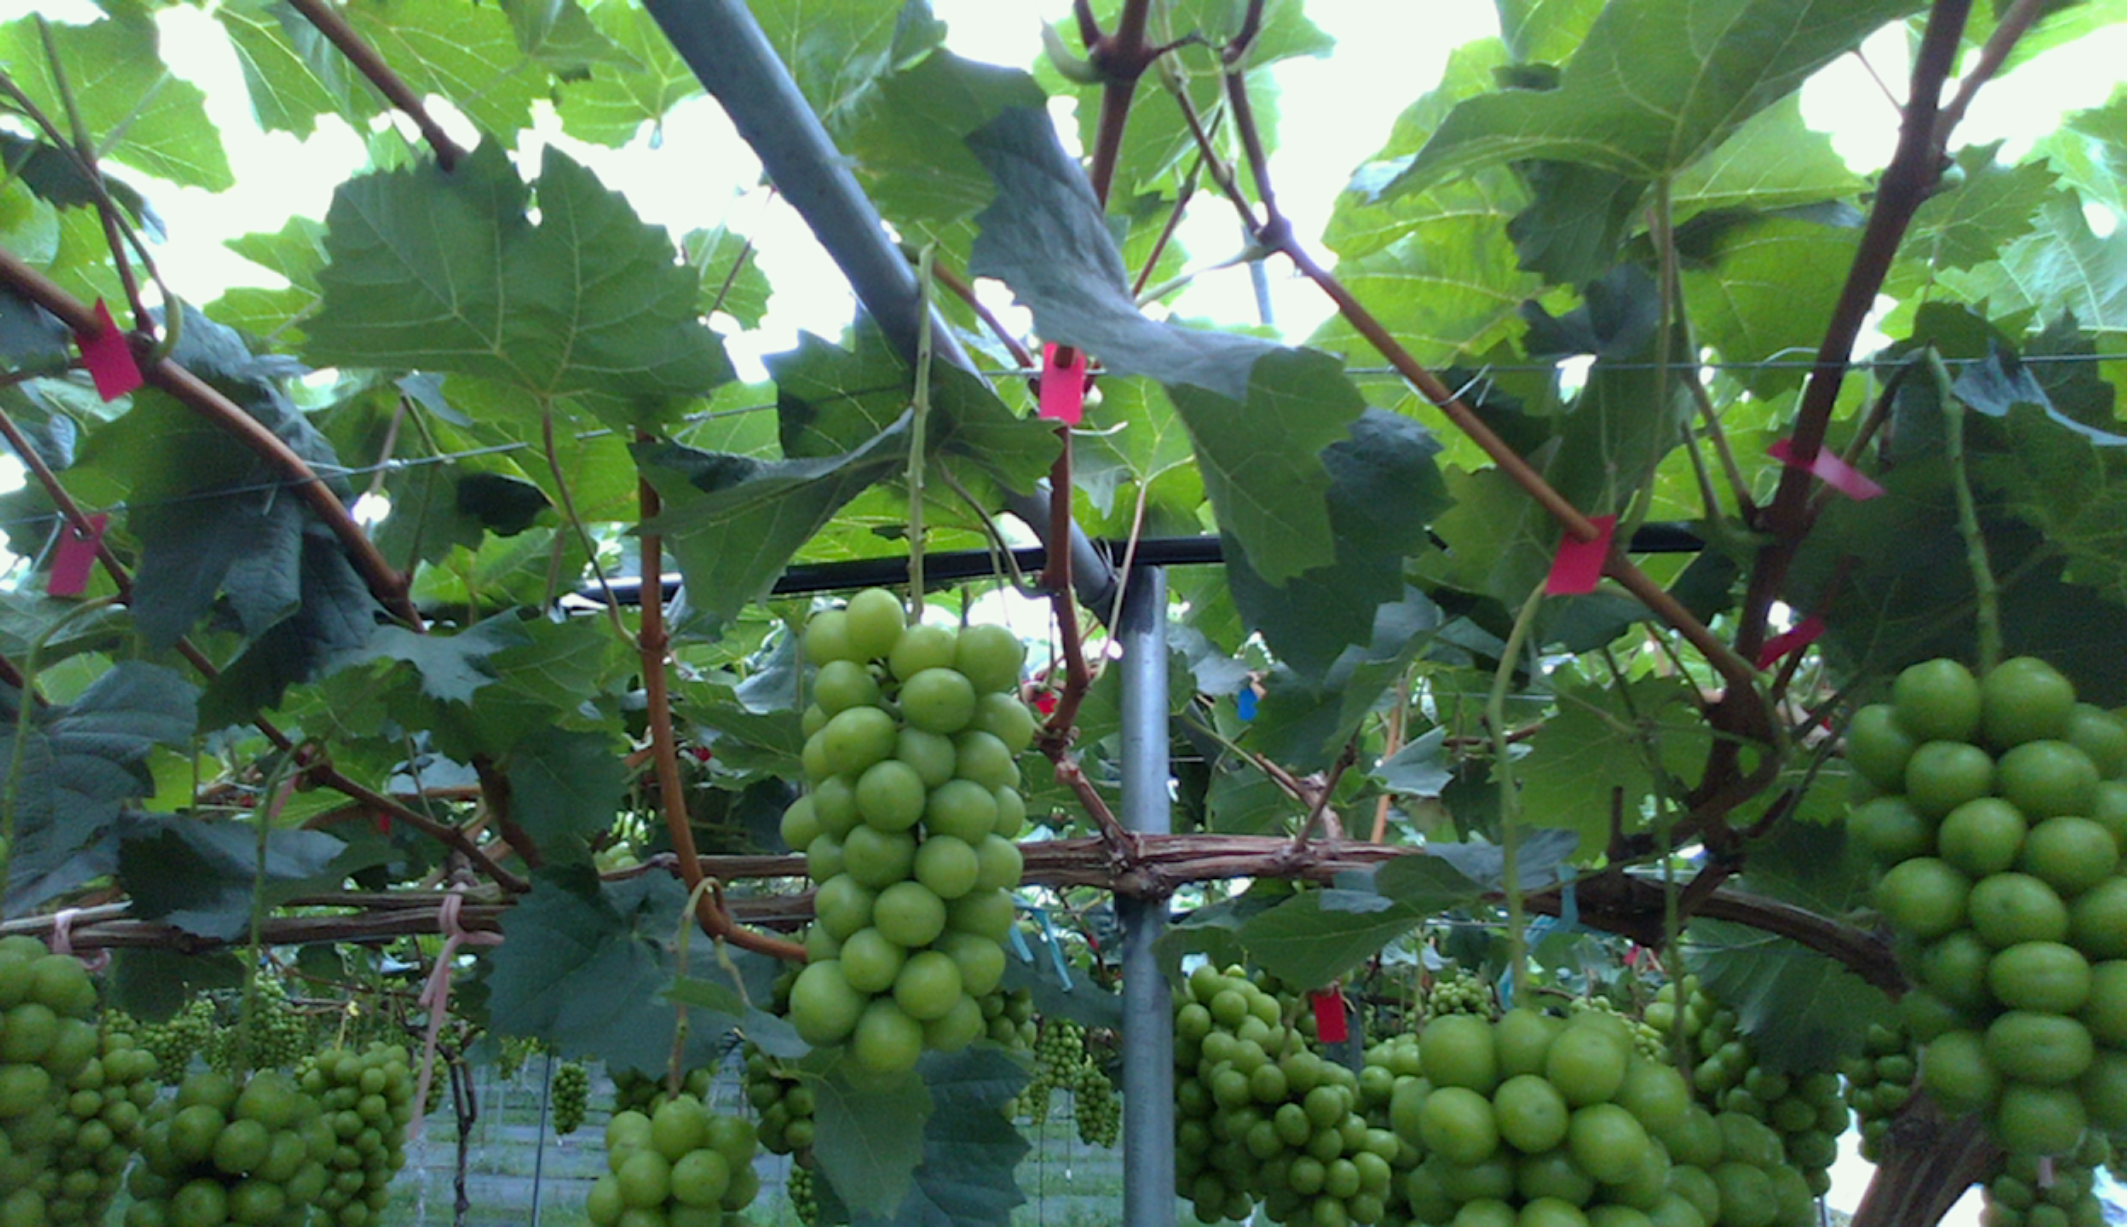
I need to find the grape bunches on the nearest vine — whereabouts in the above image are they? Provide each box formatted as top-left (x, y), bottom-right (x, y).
top-left (779, 588), bottom-right (1035, 1077)
top-left (586, 1092), bottom-right (760, 1225)
top-left (121, 1072), bottom-right (336, 1225)
top-left (5, 936), bottom-right (94, 1225)
top-left (1844, 658), bottom-right (2125, 1157)
top-left (1708, 1113), bottom-right (1819, 1225)
top-left (1387, 1009), bottom-right (1723, 1225)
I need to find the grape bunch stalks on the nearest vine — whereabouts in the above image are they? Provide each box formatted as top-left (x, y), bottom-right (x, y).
top-left (903, 256), bottom-right (934, 622)
top-left (233, 736), bottom-right (319, 1089)
top-left (1641, 741), bottom-right (1696, 1101)
top-left (1479, 579), bottom-right (1546, 1009)
top-left (1929, 351), bottom-right (2001, 680)
top-left (668, 1005), bottom-right (689, 1096)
